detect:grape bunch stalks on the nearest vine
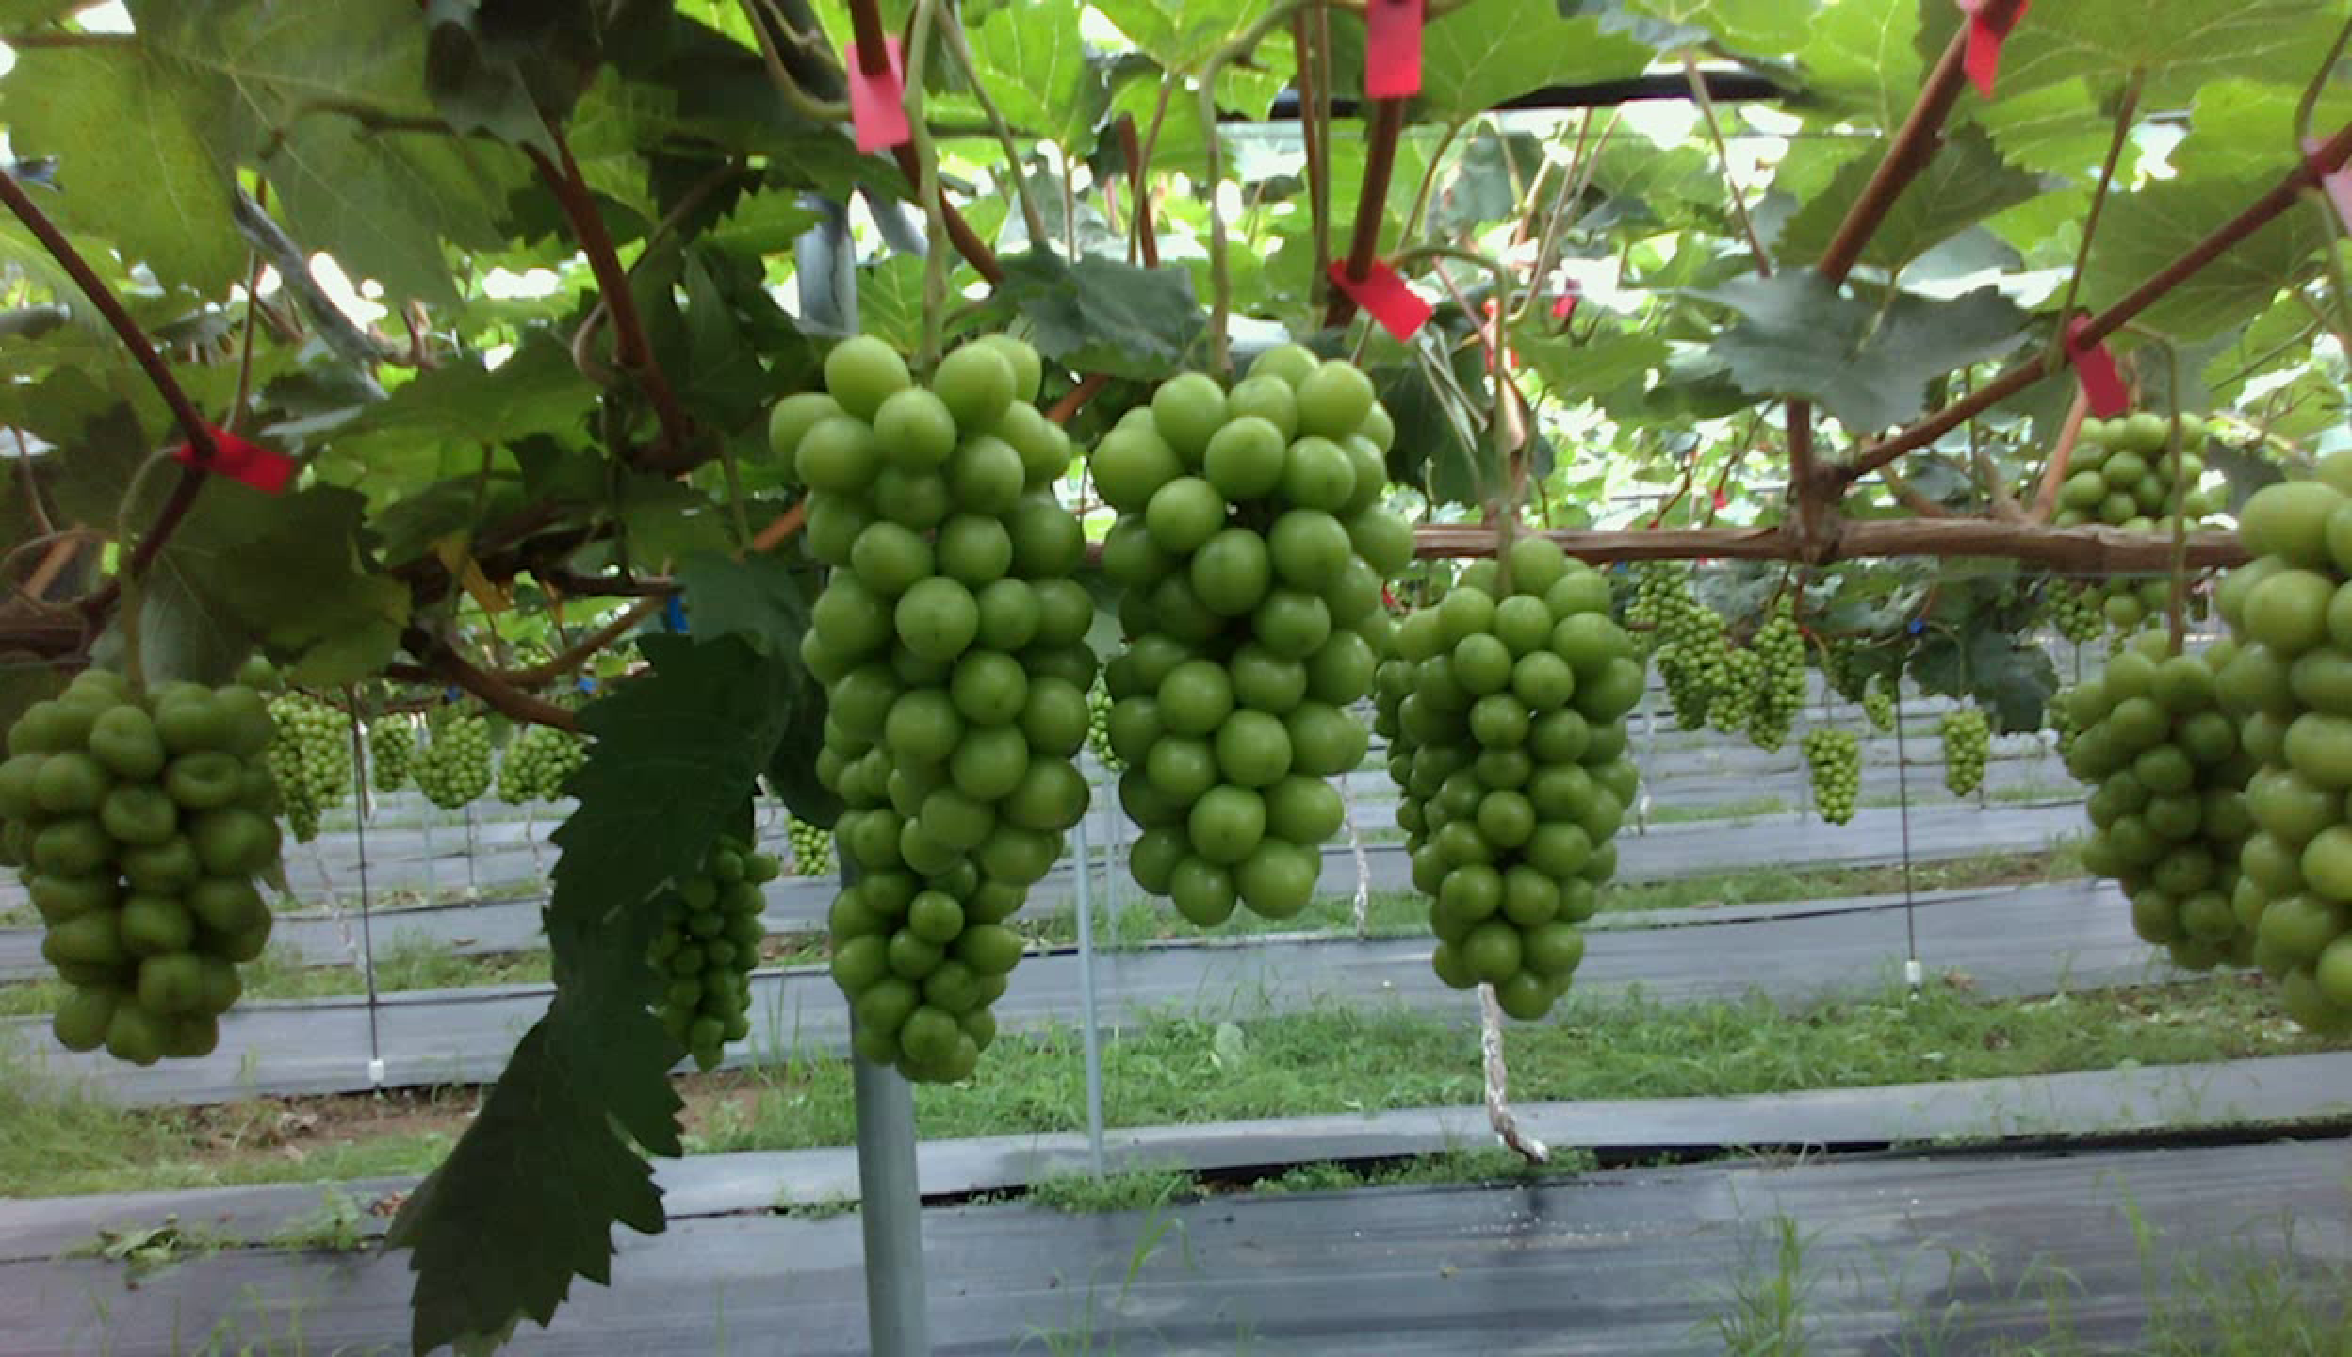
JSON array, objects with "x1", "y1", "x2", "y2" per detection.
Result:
[
  {"x1": 903, "y1": 2, "x2": 1048, "y2": 375},
  {"x1": 1204, "y1": 2, "x2": 1297, "y2": 384},
  {"x1": 2118, "y1": 319, "x2": 2184, "y2": 658},
  {"x1": 115, "y1": 443, "x2": 185, "y2": 699},
  {"x1": 1383, "y1": 243, "x2": 1513, "y2": 596}
]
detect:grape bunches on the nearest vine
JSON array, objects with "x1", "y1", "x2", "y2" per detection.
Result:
[
  {"x1": 769, "y1": 334, "x2": 1095, "y2": 878},
  {"x1": 816, "y1": 716, "x2": 1027, "y2": 1084},
  {"x1": 2, "y1": 671, "x2": 281, "y2": 1067},
  {"x1": 2213, "y1": 452, "x2": 2350, "y2": 1037},
  {"x1": 2067, "y1": 629, "x2": 2256, "y2": 967},
  {"x1": 1396, "y1": 537, "x2": 1645, "y2": 1016},
  {"x1": 1095, "y1": 343, "x2": 1415, "y2": 925}
]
